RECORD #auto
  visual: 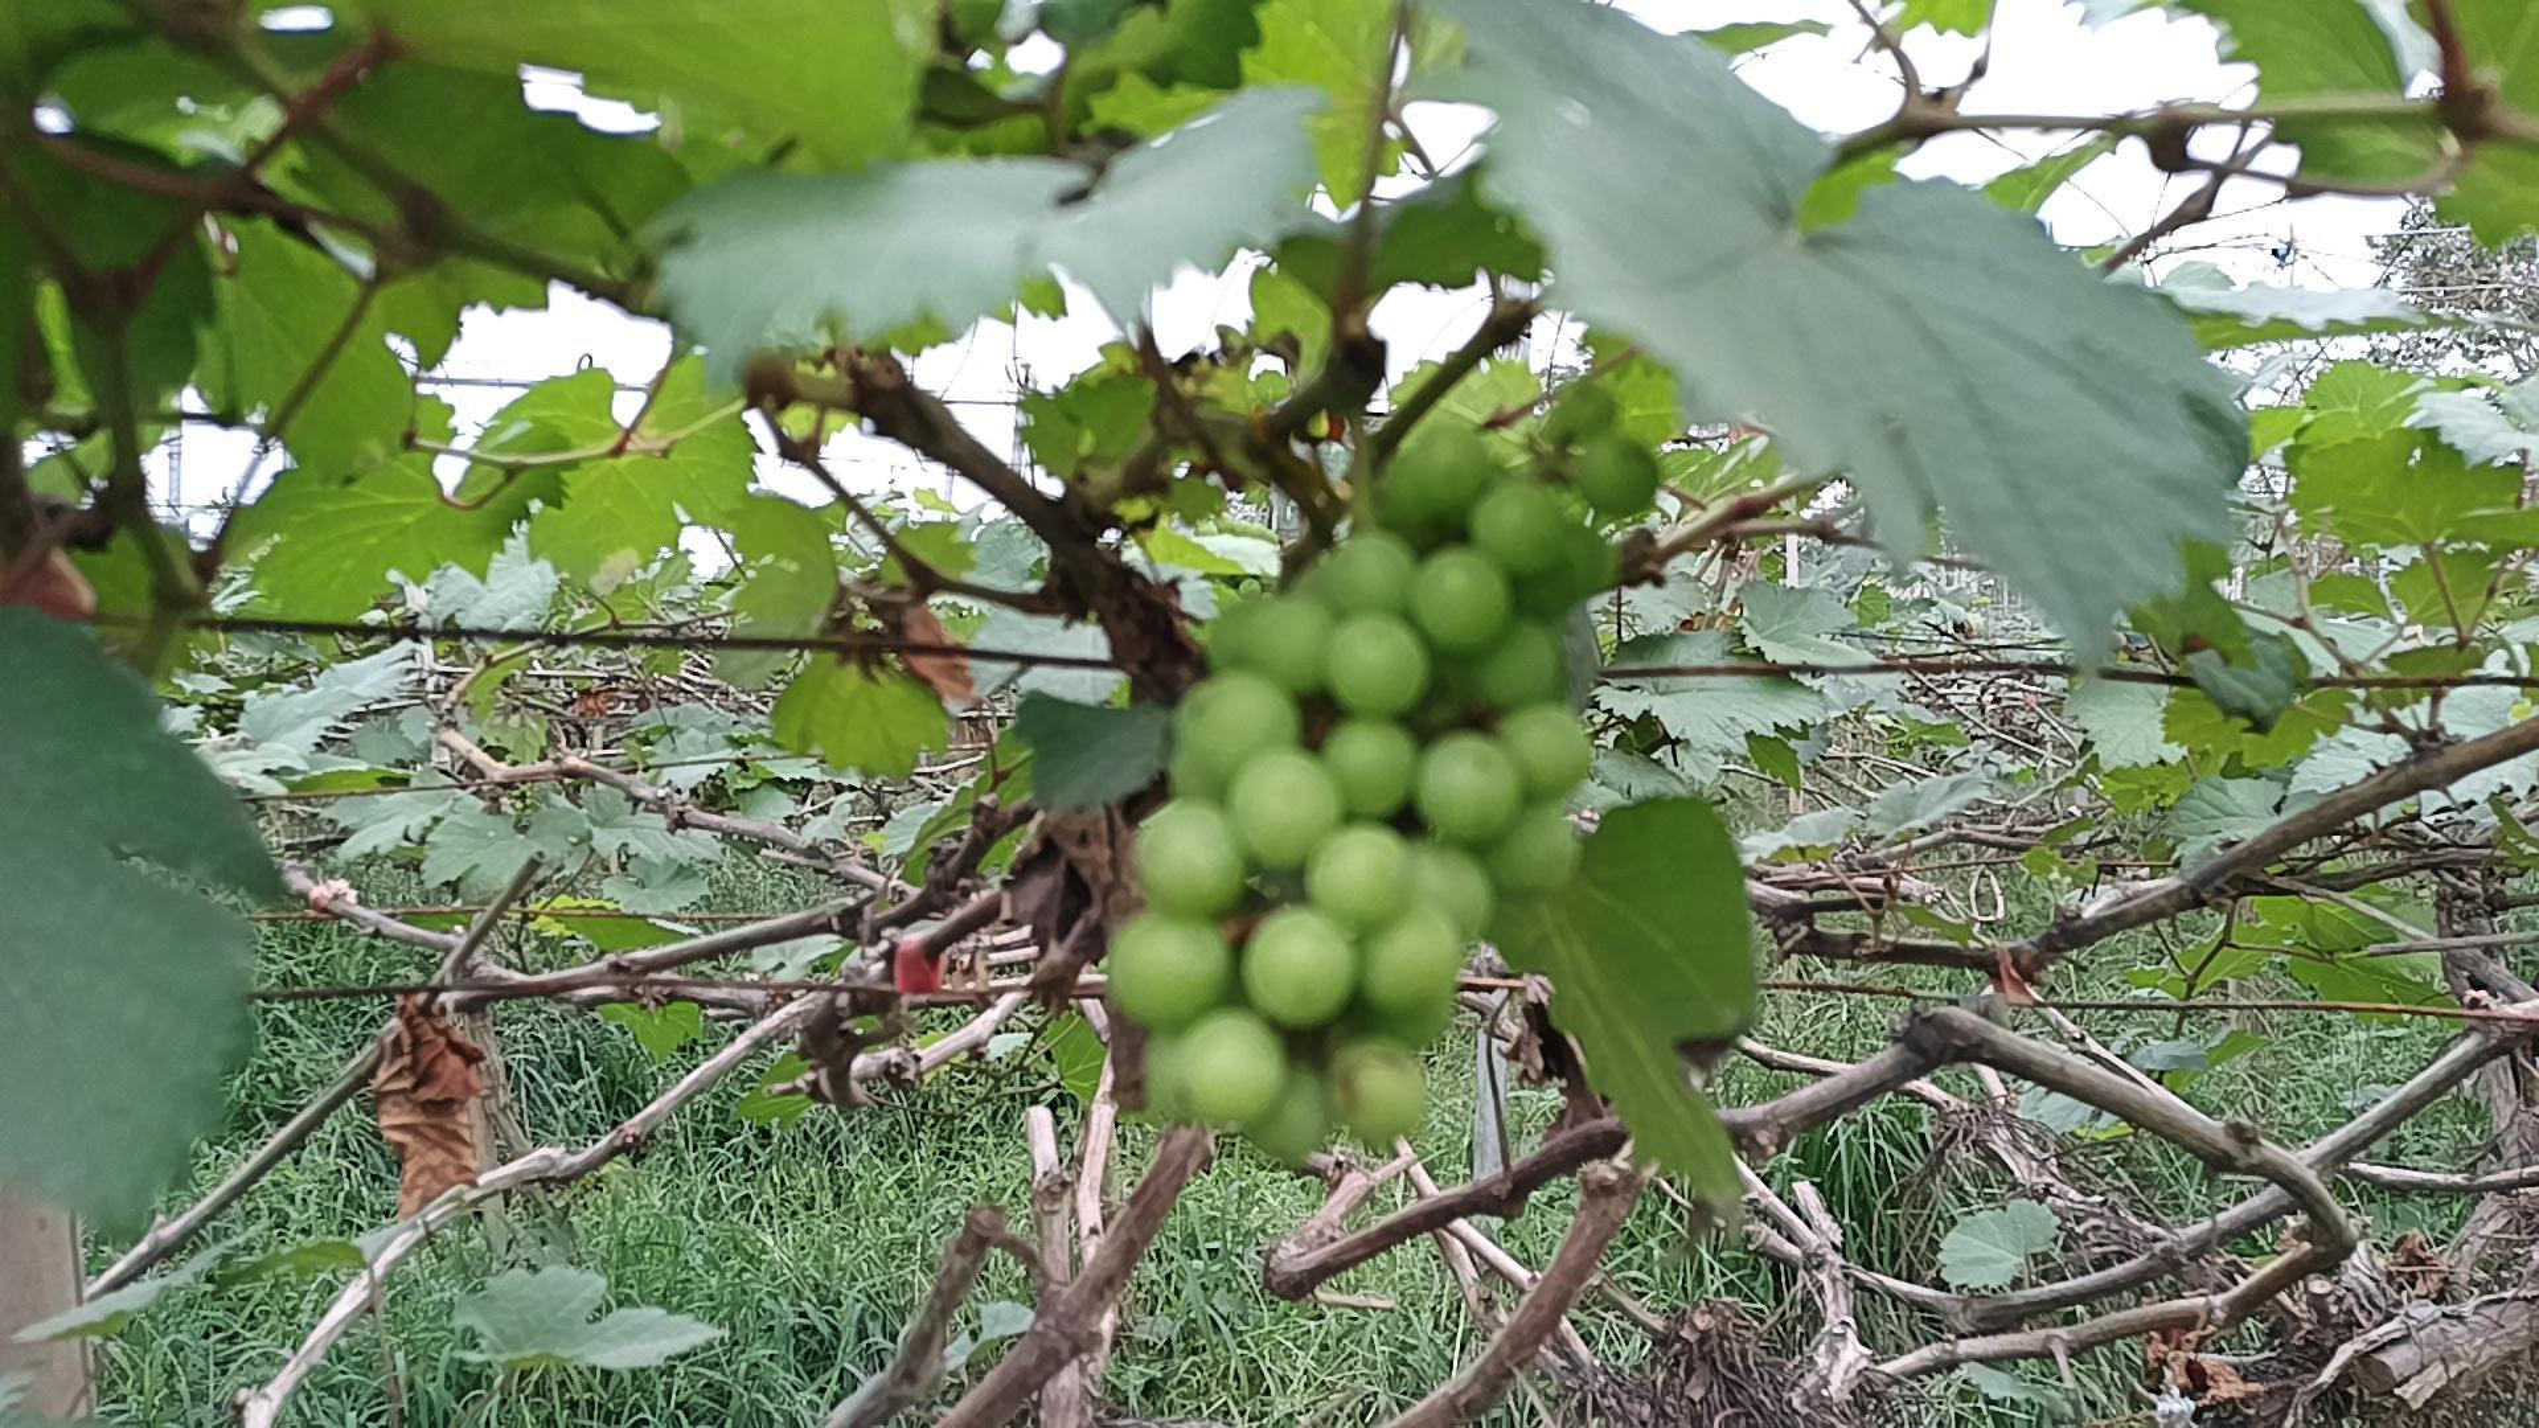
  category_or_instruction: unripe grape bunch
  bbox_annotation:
[1104,379,1656,1157]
